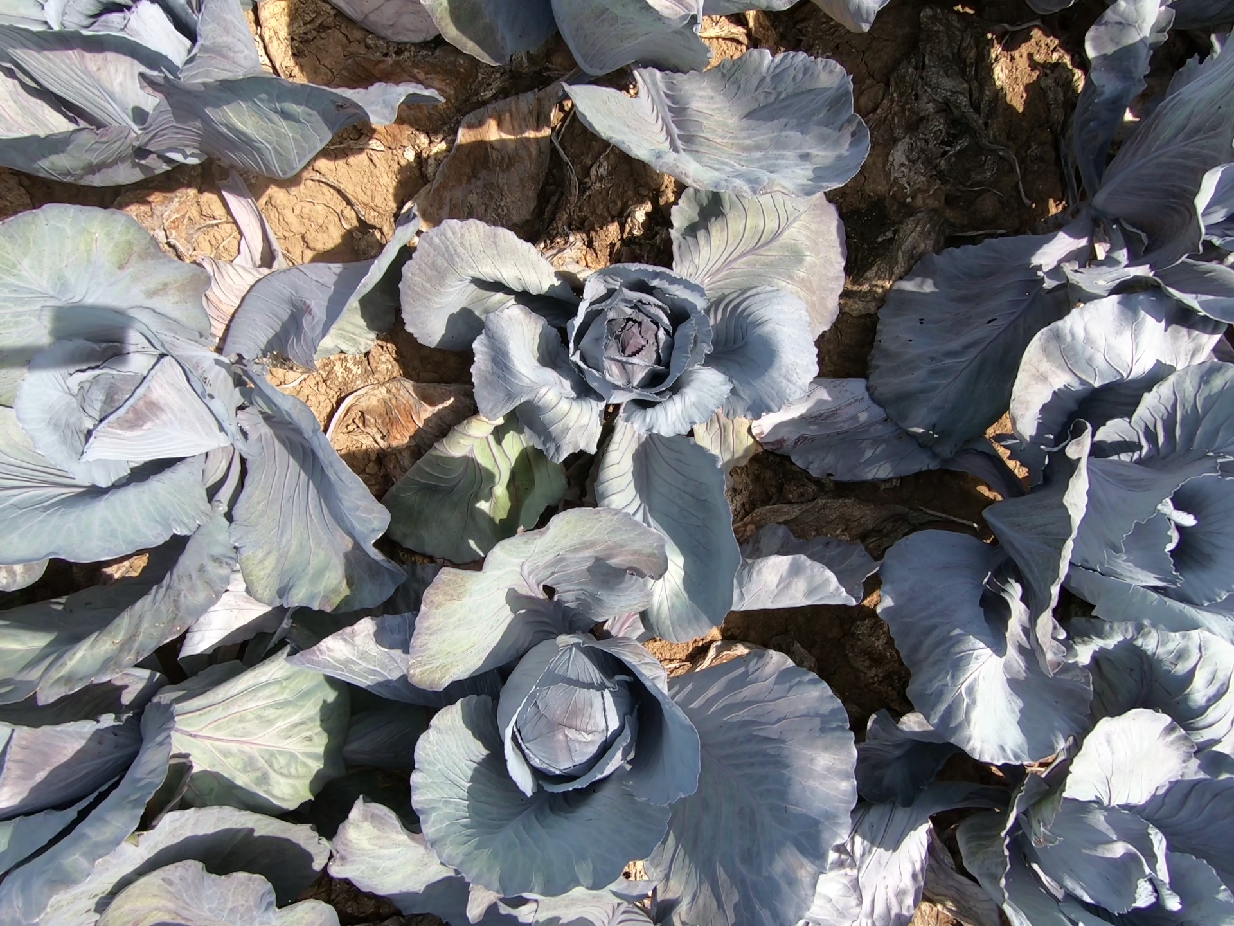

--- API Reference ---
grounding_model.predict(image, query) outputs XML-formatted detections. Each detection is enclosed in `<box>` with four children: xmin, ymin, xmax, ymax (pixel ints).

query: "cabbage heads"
<box><xmin>76</xmin><ymin>349</ymin><xmax>206</xmax><ymax>457</ymax></box>
<box><xmin>66</xmin><ymin>8</ymin><xmax>197</xmax><ymax>127</ymax></box>
<box><xmin>1054</xmin><ymin>808</ymin><xmax>1168</xmax><ymax>909</ymax></box>
<box><xmin>506</xmin><ymin>643</ymin><xmax>634</xmax><ymax>779</ymax></box>
<box><xmin>2</xmin><ymin>648</ymin><xmax>152</xmax><ymax>820</ymax></box>
<box><xmin>1073</xmin><ymin>470</ymin><xmax>1179</xmax><ymax>563</ymax></box>
<box><xmin>586</xmin><ymin>296</ymin><xmax>674</xmax><ymax>385</ymax></box>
